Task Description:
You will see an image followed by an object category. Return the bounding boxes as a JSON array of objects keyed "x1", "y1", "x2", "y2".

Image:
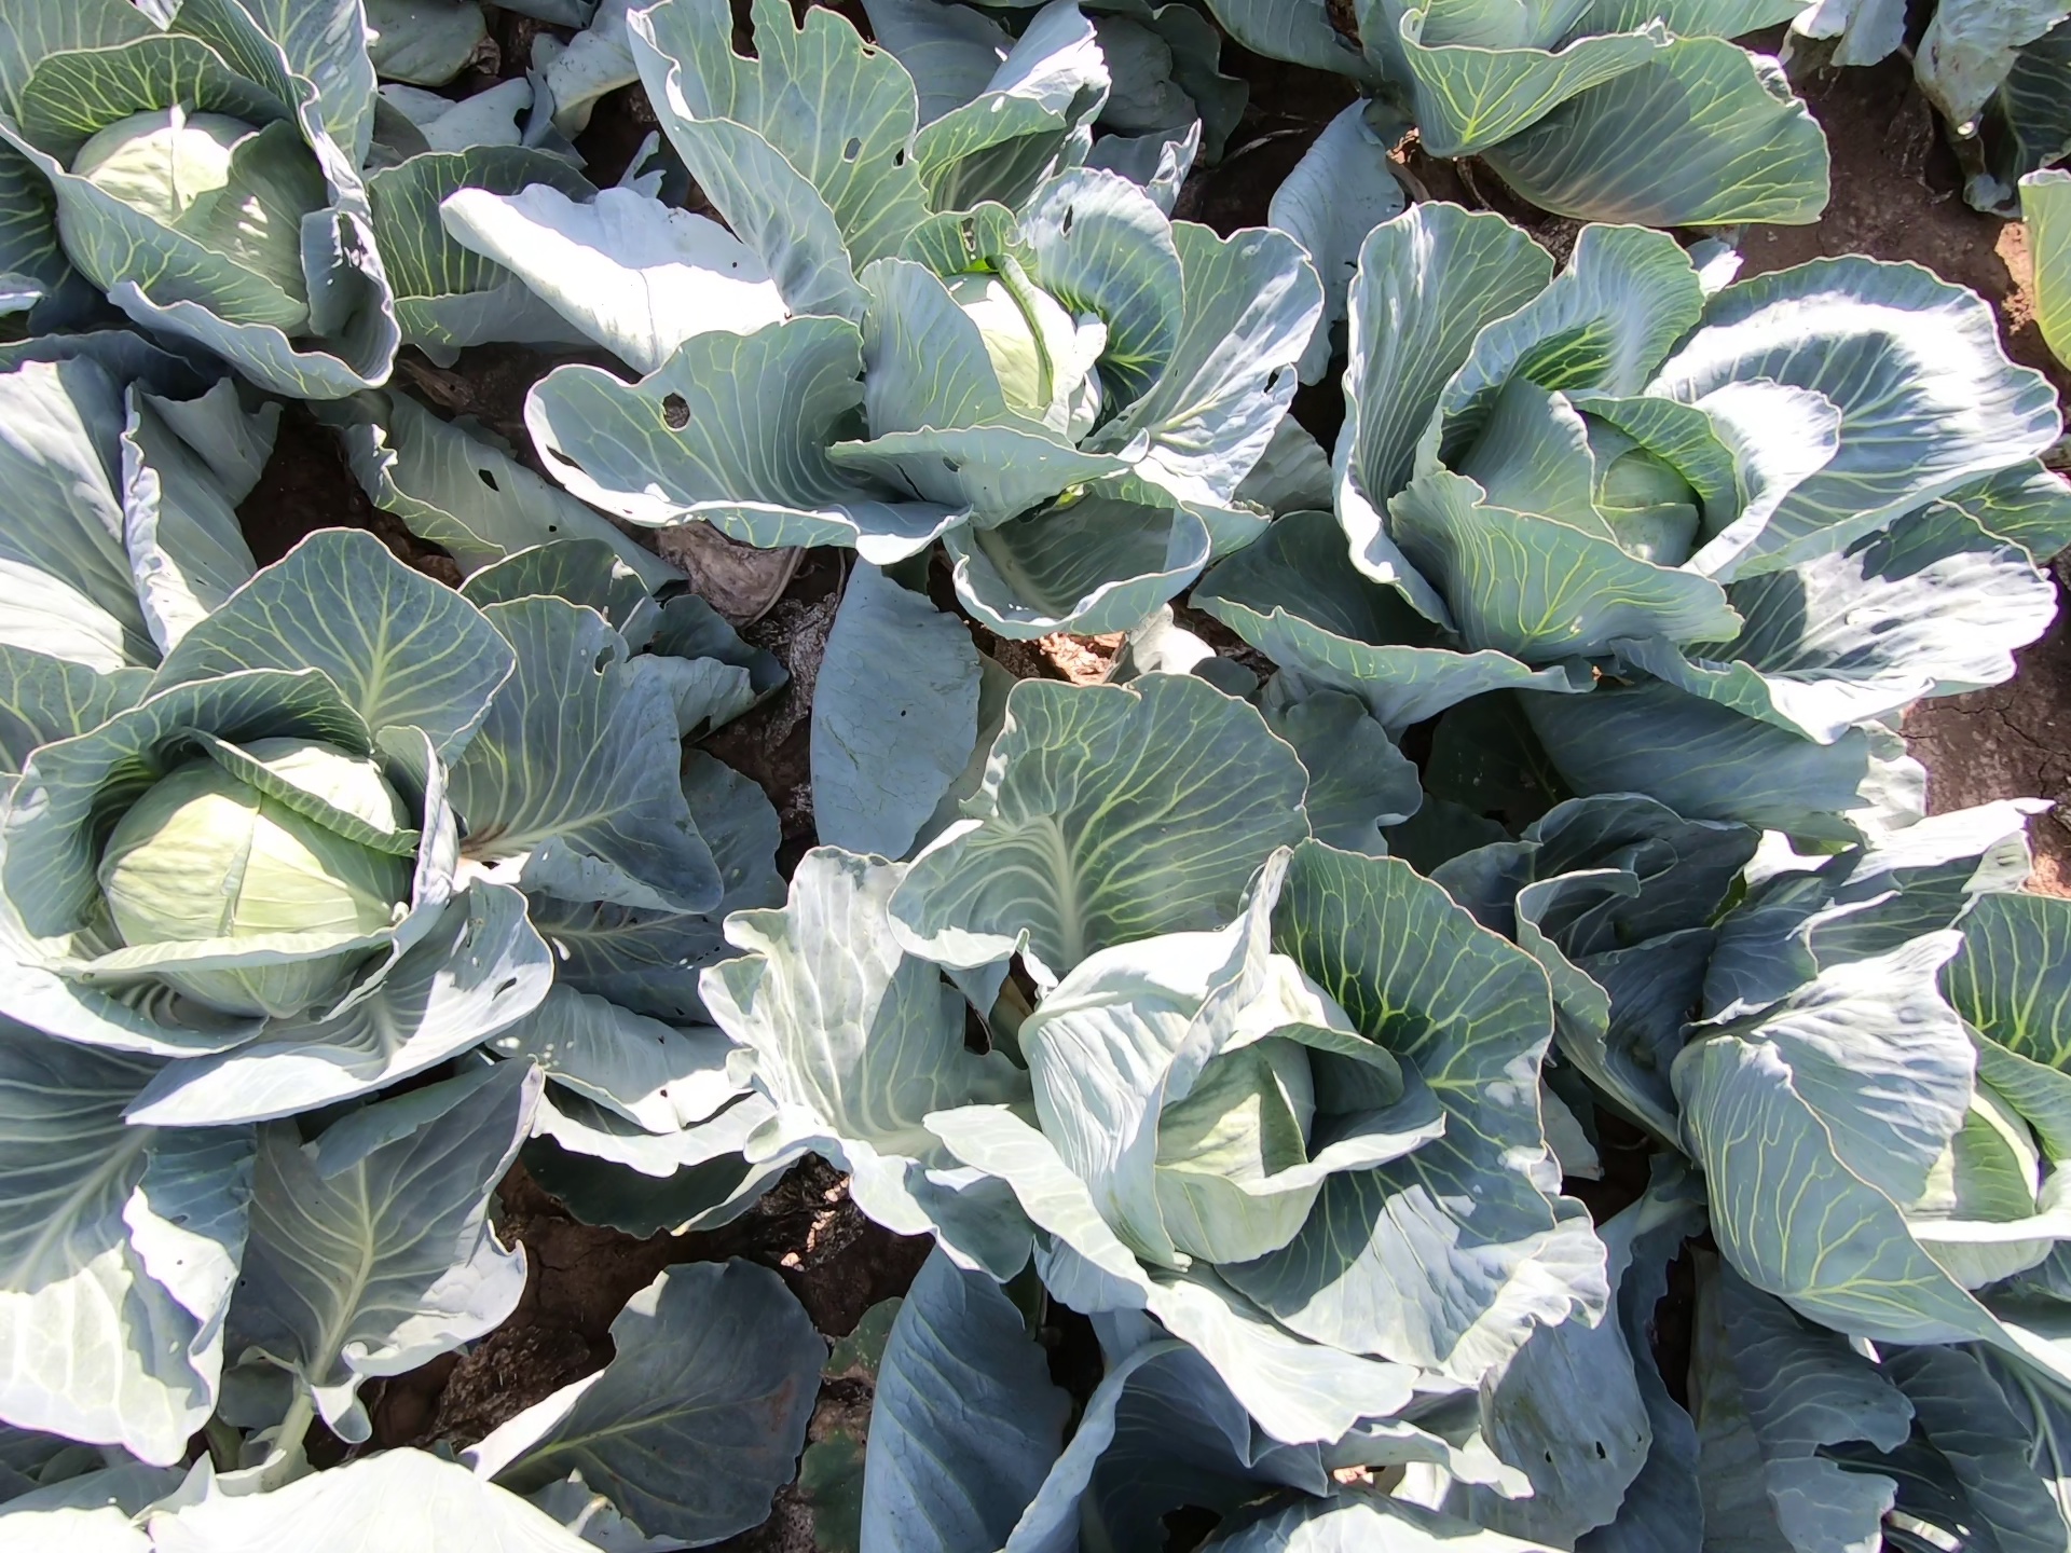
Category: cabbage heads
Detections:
[
  {"x1": 866, "y1": 274, "x2": 1103, "y2": 495},
  {"x1": 1081, "y1": 948, "x2": 1325, "y2": 1231},
  {"x1": 1487, "y1": 408, "x2": 1706, "y2": 610},
  {"x1": 65, "y1": 105, "x2": 328, "y2": 326},
  {"x1": 1785, "y1": 1039, "x2": 2038, "y2": 1284},
  {"x1": 98, "y1": 741, "x2": 411, "y2": 985}
]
